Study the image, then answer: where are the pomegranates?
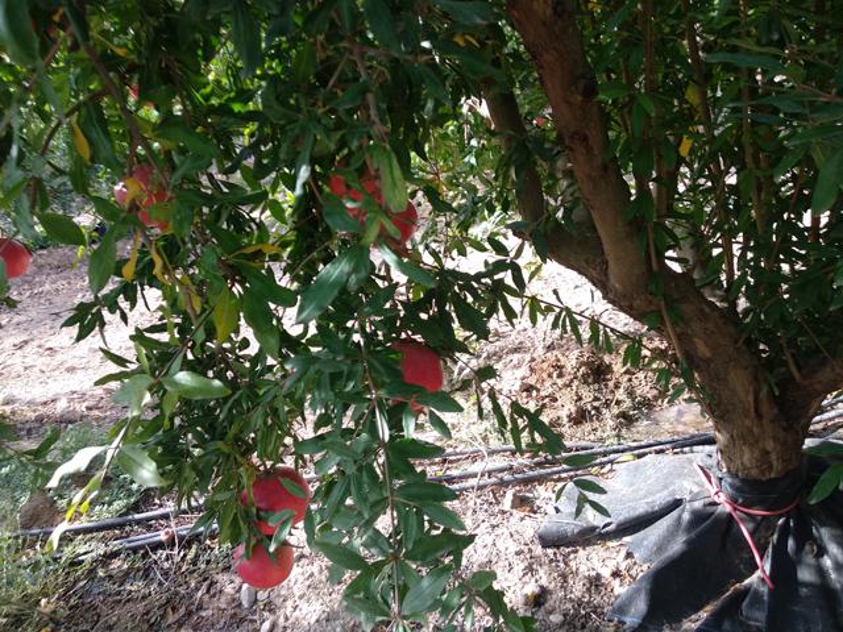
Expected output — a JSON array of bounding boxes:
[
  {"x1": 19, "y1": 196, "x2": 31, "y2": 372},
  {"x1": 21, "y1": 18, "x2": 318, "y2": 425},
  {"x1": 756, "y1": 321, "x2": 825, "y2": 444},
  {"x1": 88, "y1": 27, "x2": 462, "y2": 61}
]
[
  {"x1": 233, "y1": 542, "x2": 294, "y2": 589},
  {"x1": 371, "y1": 190, "x2": 418, "y2": 257},
  {"x1": 0, "y1": 238, "x2": 30, "y2": 279},
  {"x1": 113, "y1": 166, "x2": 169, "y2": 232},
  {"x1": 390, "y1": 338, "x2": 444, "y2": 391},
  {"x1": 329, "y1": 169, "x2": 379, "y2": 224},
  {"x1": 241, "y1": 466, "x2": 311, "y2": 535}
]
